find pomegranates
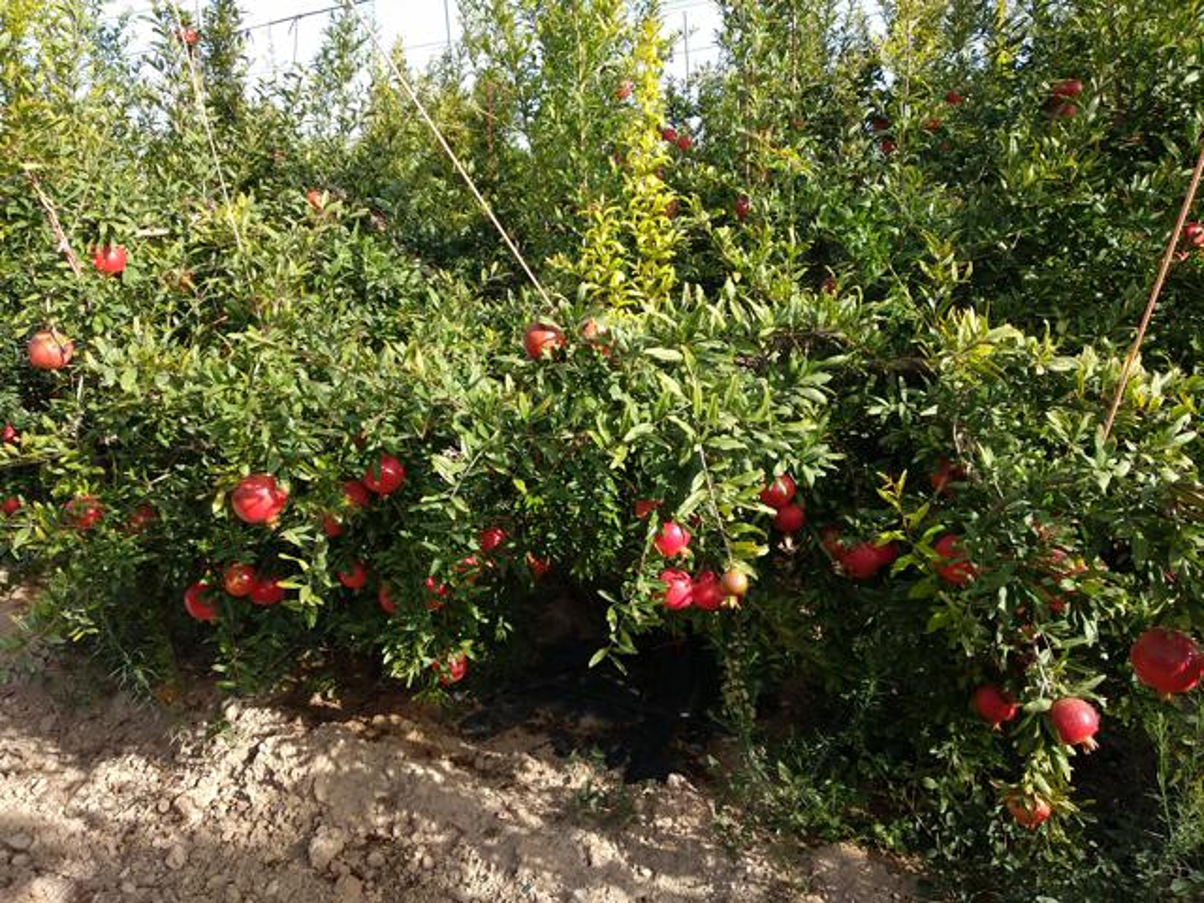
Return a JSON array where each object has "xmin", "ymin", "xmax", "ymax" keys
[
  {"xmin": 653, "ymin": 566, "xmax": 696, "ymax": 611},
  {"xmin": 756, "ymin": 474, "xmax": 796, "ymax": 508},
  {"xmin": 523, "ymin": 322, "xmax": 568, "ymax": 361},
  {"xmin": 324, "ymin": 515, "xmax": 344, "ymax": 538},
  {"xmin": 337, "ymin": 564, "xmax": 367, "ymax": 596},
  {"xmin": 1008, "ymin": 800, "xmax": 1053, "ymax": 828},
  {"xmin": 26, "ymin": 329, "xmax": 75, "ymax": 371},
  {"xmin": 933, "ymin": 532, "xmax": 974, "ymax": 587},
  {"xmin": 973, "ymin": 681, "xmax": 1020, "ymax": 732},
  {"xmin": 92, "ymin": 246, "xmax": 128, "ymax": 275},
  {"xmin": 690, "ymin": 570, "xmax": 724, "ymax": 610},
  {"xmin": 581, "ymin": 320, "xmax": 613, "ymax": 357},
  {"xmin": 378, "ymin": 583, "xmax": 395, "ymax": 613},
  {"xmin": 1181, "ymin": 220, "xmax": 1204, "ymax": 246},
  {"xmin": 632, "ymin": 499, "xmax": 660, "ymax": 519},
  {"xmin": 361, "ymin": 451, "xmax": 406, "ymax": 499},
  {"xmin": 60, "ymin": 495, "xmax": 103, "ymax": 527},
  {"xmin": 1129, "ymin": 628, "xmax": 1204, "ymax": 702},
  {"xmin": 721, "ymin": 568, "xmax": 749, "ymax": 610},
  {"xmin": 248, "ymin": 576, "xmax": 288, "ymax": 604},
  {"xmin": 0, "ymin": 421, "xmax": 19, "ymax": 446},
  {"xmin": 1050, "ymin": 696, "xmax": 1102, "ymax": 754},
  {"xmin": 222, "ymin": 564, "xmax": 260, "ymax": 598},
  {"xmin": 0, "ymin": 497, "xmax": 21, "ymax": 517},
  {"xmin": 433, "ymin": 657, "xmax": 468, "ymax": 685},
  {"xmin": 480, "ymin": 527, "xmax": 512, "ymax": 553},
  {"xmin": 822, "ymin": 529, "xmax": 897, "ymax": 578},
  {"xmin": 182, "ymin": 581, "xmax": 218, "ymax": 619},
  {"xmin": 527, "ymin": 553, "xmax": 551, "ymax": 578},
  {"xmin": 342, "ymin": 480, "xmax": 372, "ymax": 508},
  {"xmin": 655, "ymin": 519, "xmax": 694, "ymax": 561},
  {"xmin": 230, "ymin": 470, "xmax": 288, "ymax": 527},
  {"xmin": 773, "ymin": 502, "xmax": 807, "ymax": 532},
  {"xmin": 423, "ymin": 576, "xmax": 448, "ymax": 611}
]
